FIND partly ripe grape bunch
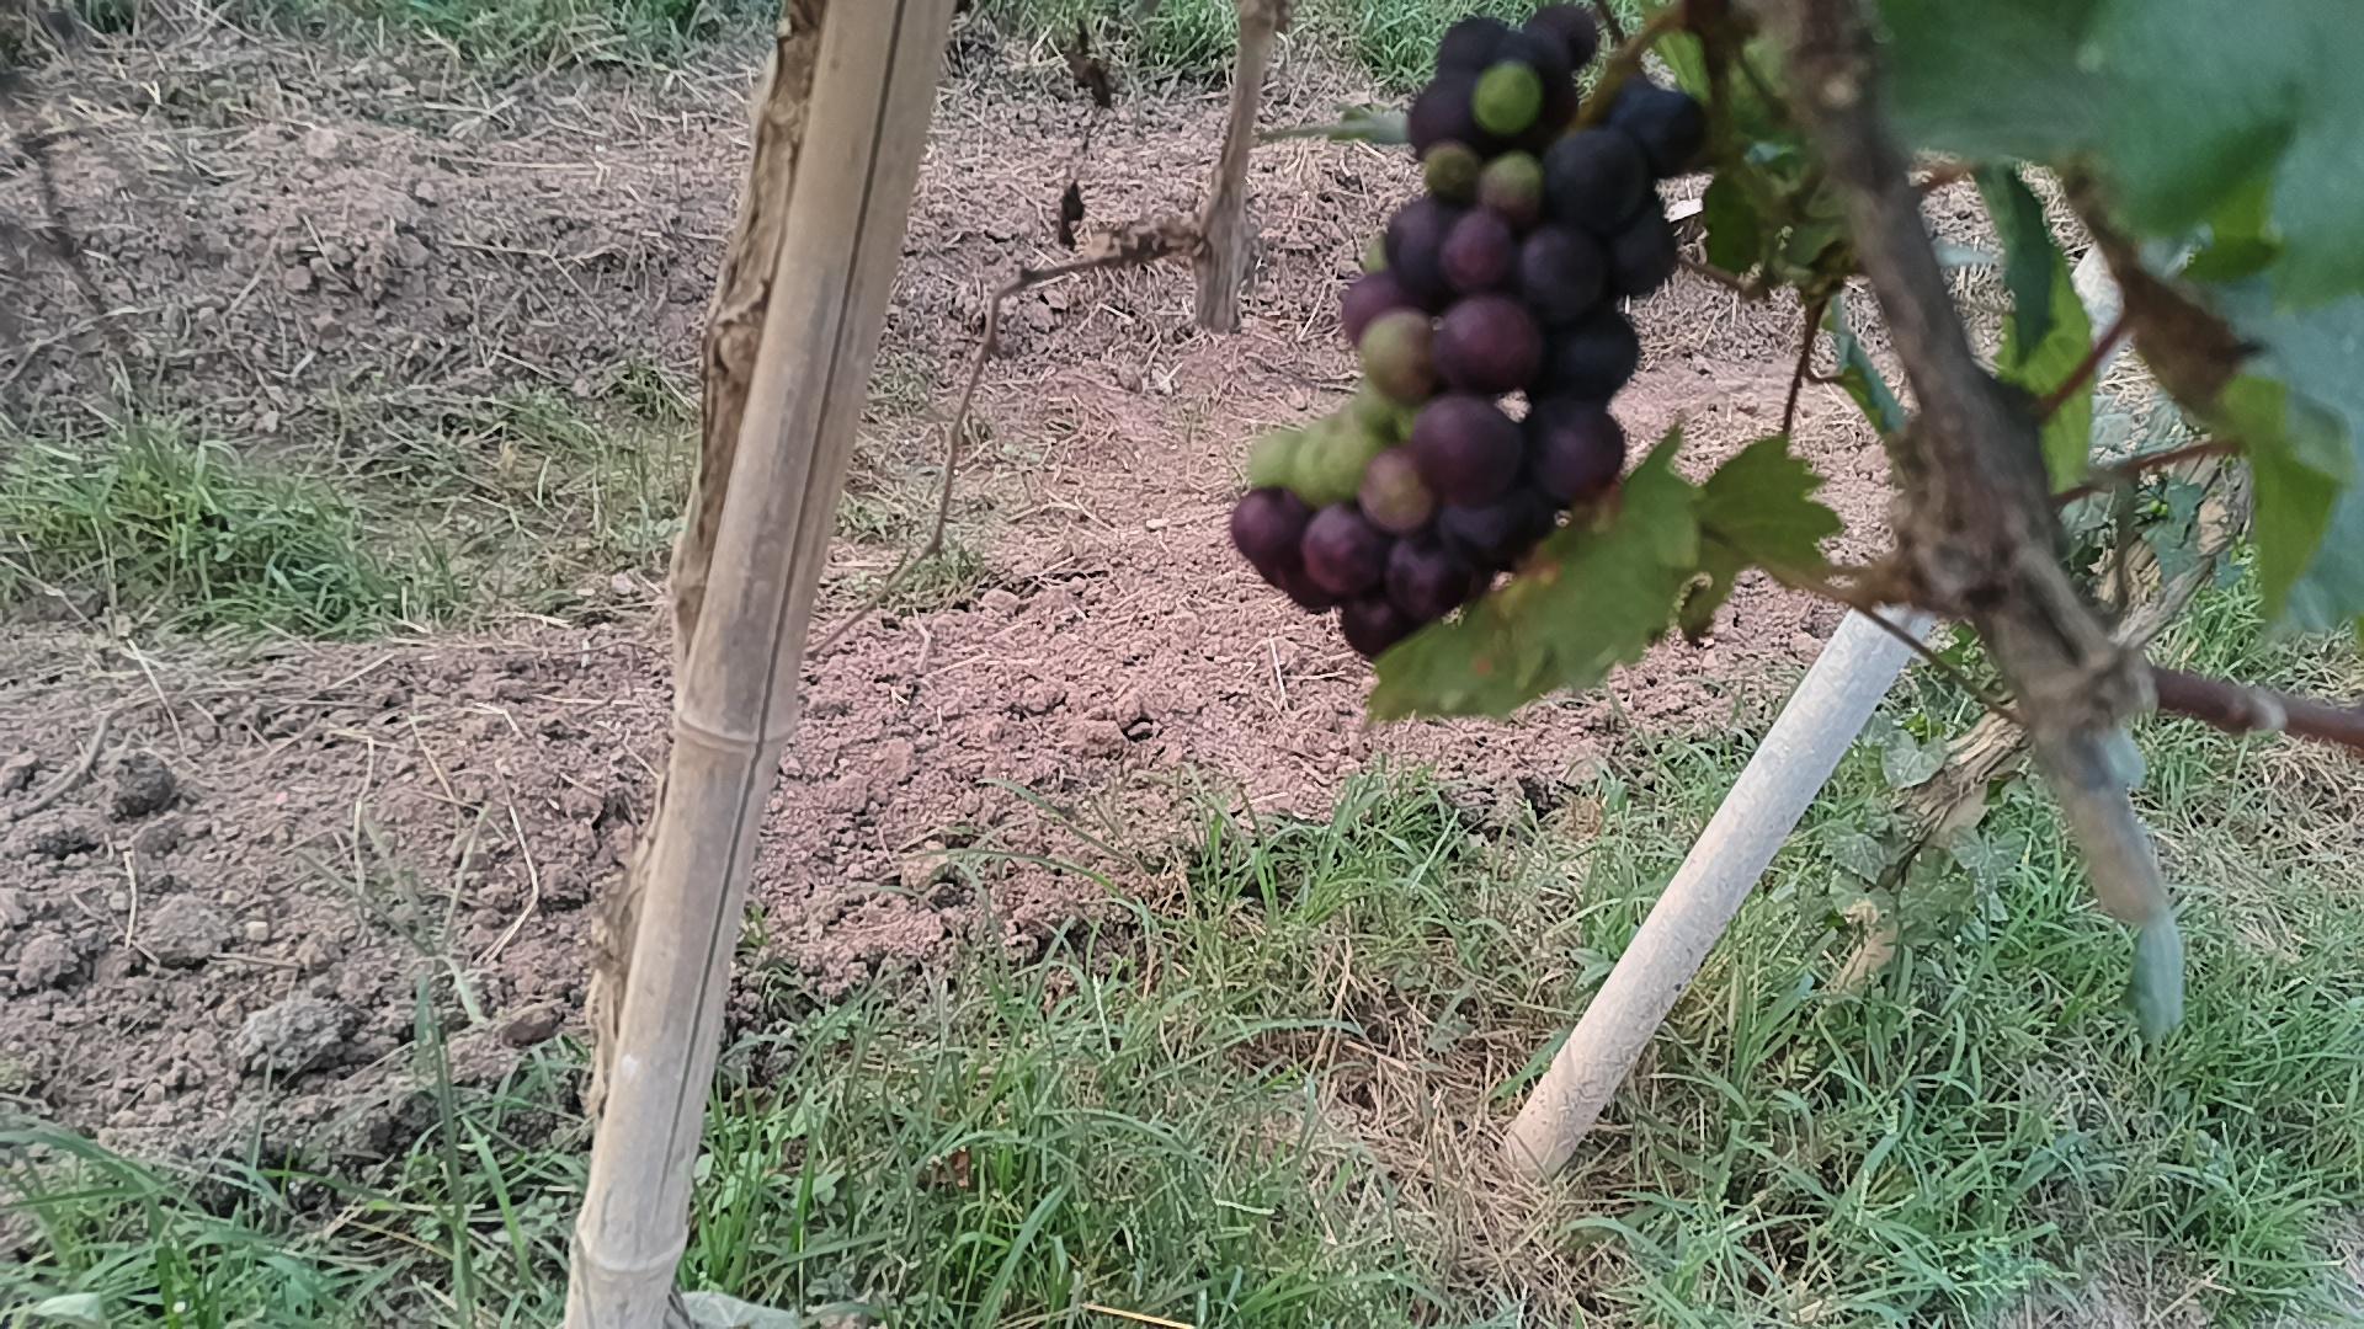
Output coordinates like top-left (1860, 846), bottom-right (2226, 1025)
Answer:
top-left (1231, 7), bottom-right (1702, 658)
